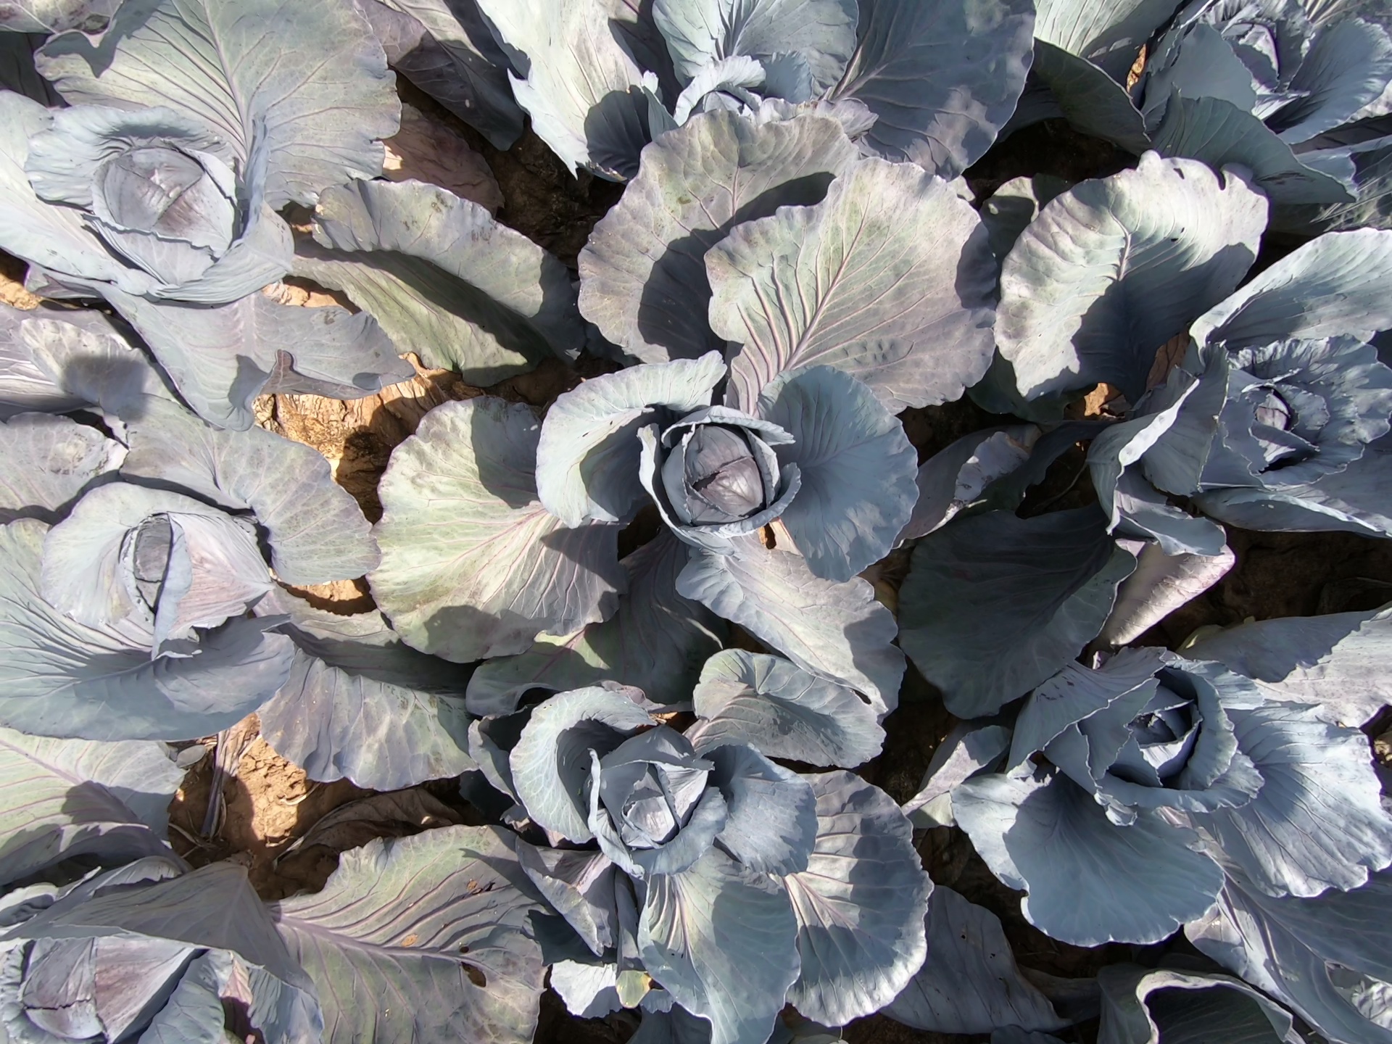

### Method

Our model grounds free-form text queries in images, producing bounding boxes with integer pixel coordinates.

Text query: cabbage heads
[1206,22,1280,106]
[1102,694,1185,763]
[663,423,777,530]
[602,729,709,848]
[124,513,245,613]
[97,143,249,283]
[686,85,772,162]
[21,909,175,1039]
[1202,391,1291,471]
